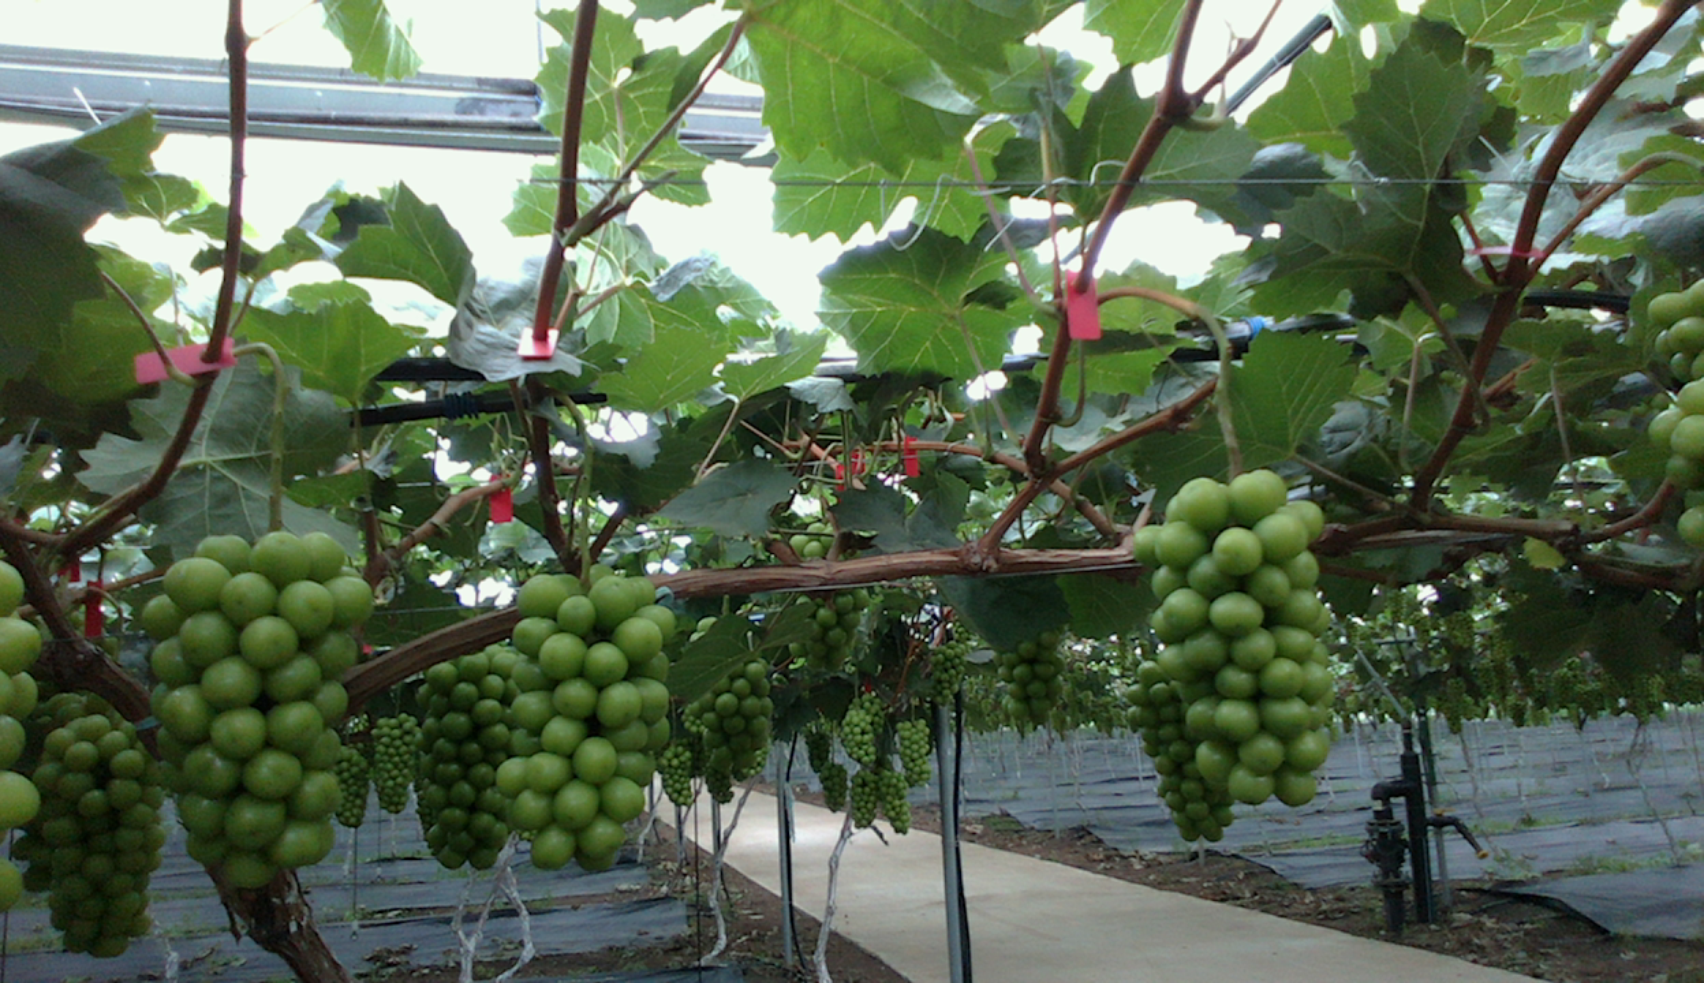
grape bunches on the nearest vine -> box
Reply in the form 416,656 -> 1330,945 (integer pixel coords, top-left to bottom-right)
142,530 -> 374,889
498,572 -> 674,870
1132,468 -> 1335,806
1648,280 -> 1701,556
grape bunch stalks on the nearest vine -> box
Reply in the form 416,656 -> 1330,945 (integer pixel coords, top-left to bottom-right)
232,341 -> 287,531
537,386 -> 593,594
1098,285 -> 1241,483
